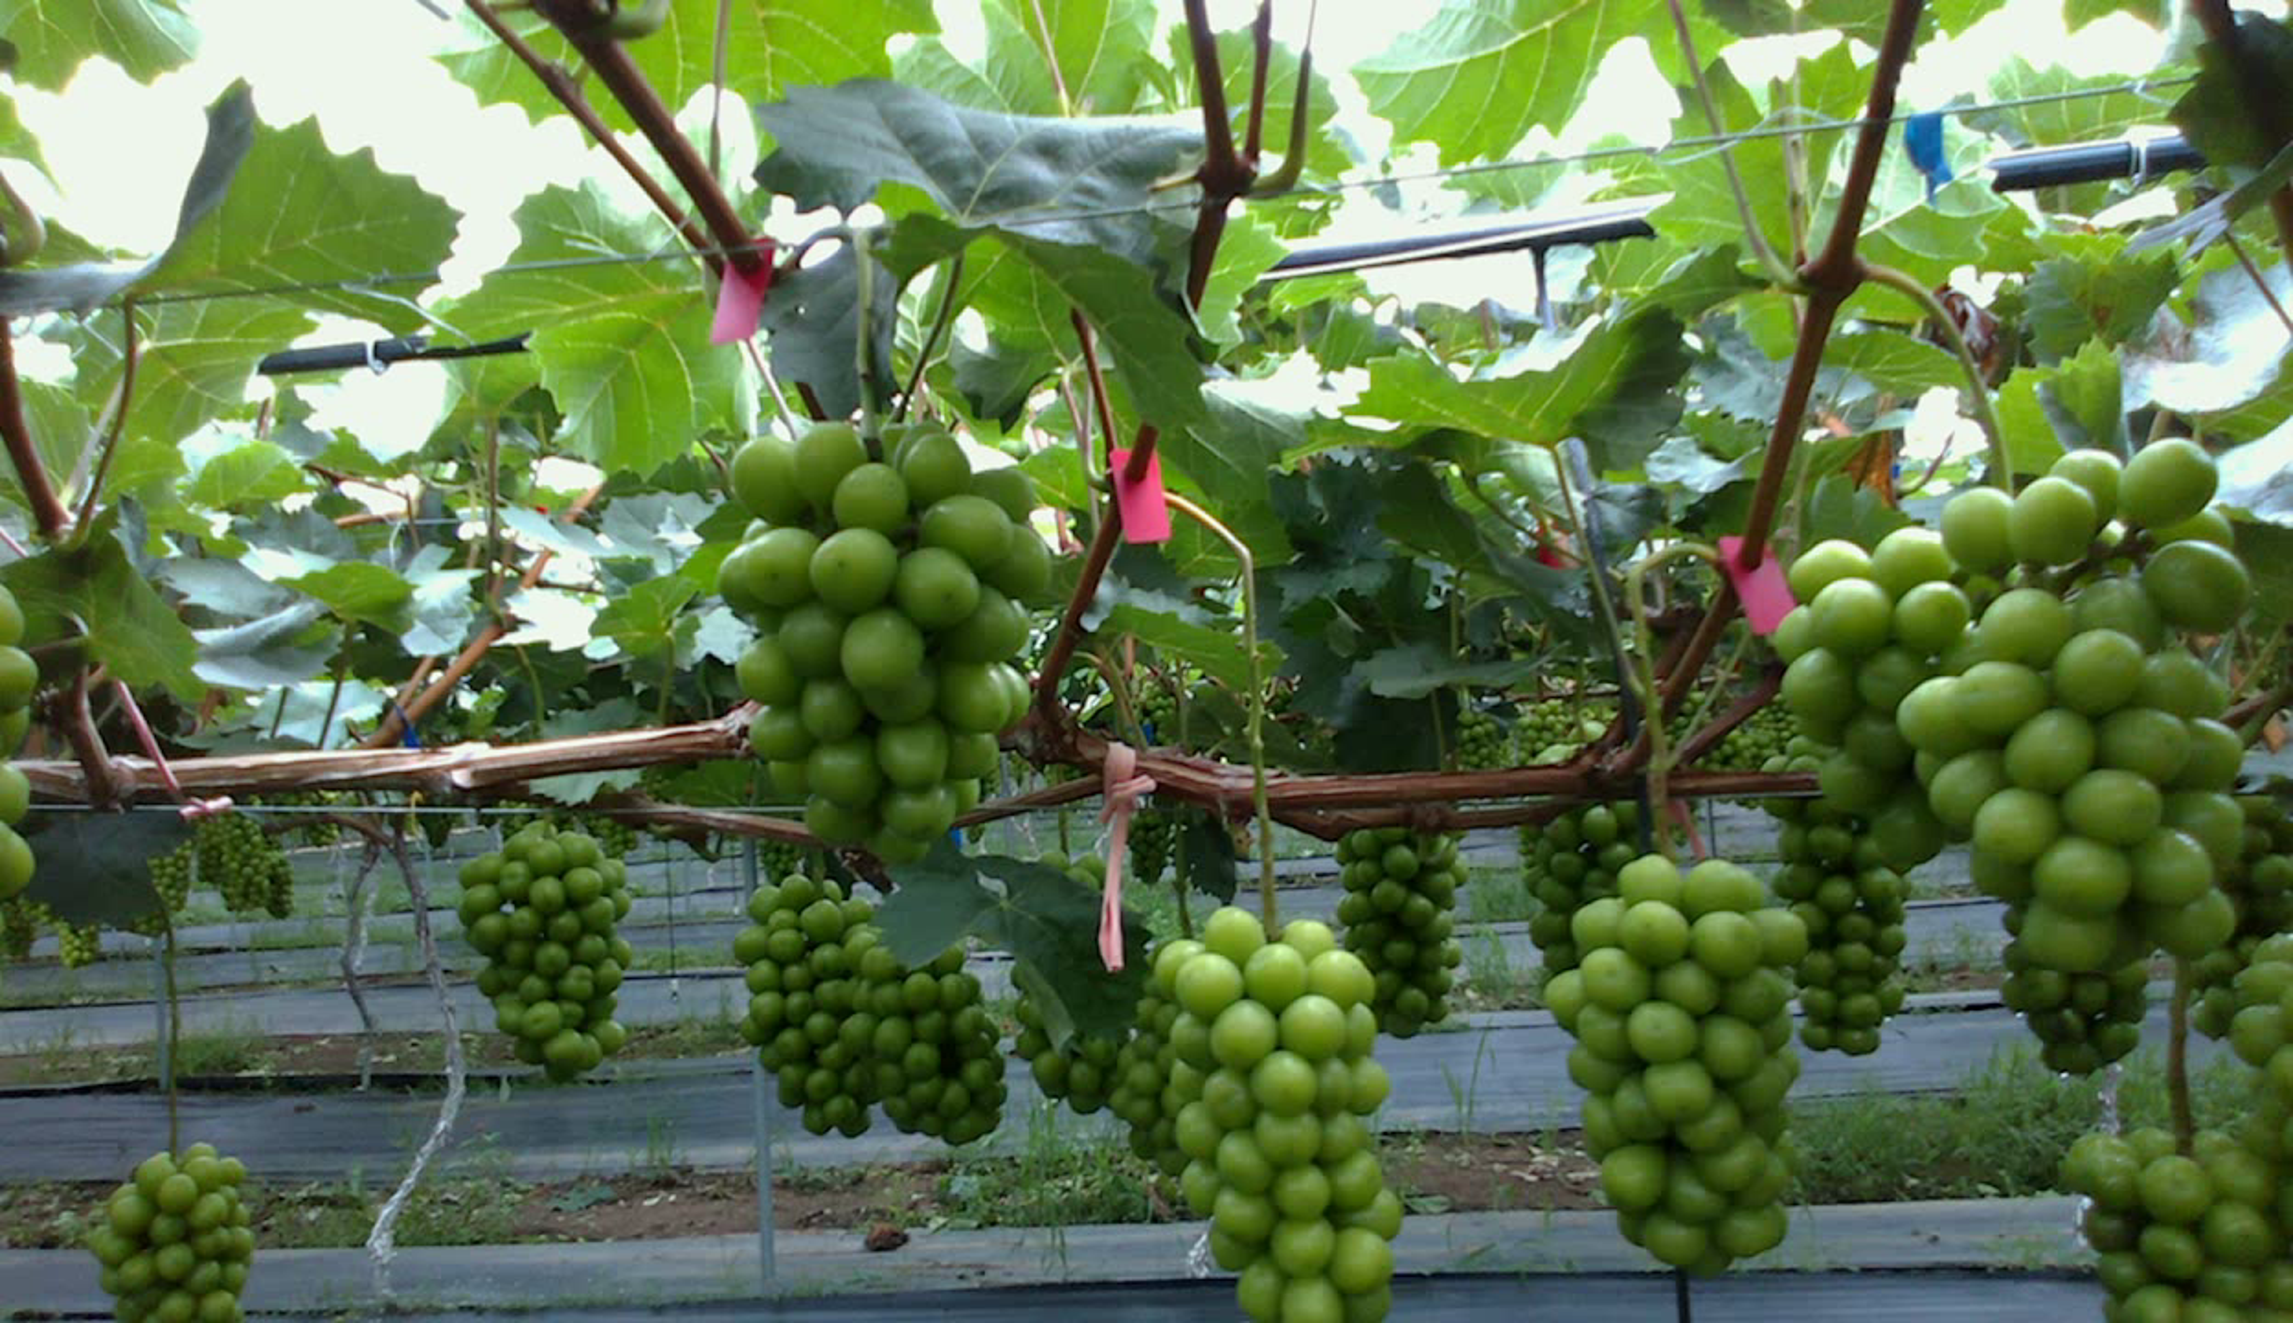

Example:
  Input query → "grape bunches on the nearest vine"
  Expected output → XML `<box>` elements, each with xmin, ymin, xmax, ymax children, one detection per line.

<box><xmin>1154</xmin><ymin>906</ymin><xmax>1404</xmax><ymax>1321</ymax></box>
<box><xmin>715</xmin><ymin>423</ymin><xmax>1055</xmax><ymax>865</ymax></box>
<box><xmin>1543</xmin><ymin>854</ymin><xmax>1810</xmax><ymax>1279</ymax></box>
<box><xmin>2058</xmin><ymin>1126</ymin><xmax>2289</xmax><ymax>1319</ymax></box>
<box><xmin>1771</xmin><ymin>437</ymin><xmax>2251</xmax><ymax>972</ymax></box>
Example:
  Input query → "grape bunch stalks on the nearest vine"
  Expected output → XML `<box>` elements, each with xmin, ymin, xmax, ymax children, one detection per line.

<box><xmin>1163</xmin><ymin>489</ymin><xmax>1279</xmax><ymax>943</ymax></box>
<box><xmin>1626</xmin><ymin>540</ymin><xmax>1720</xmax><ymax>864</ymax></box>
<box><xmin>821</xmin><ymin>226</ymin><xmax>884</xmax><ymax>461</ymax></box>
<box><xmin>2164</xmin><ymin>961</ymin><xmax>2196</xmax><ymax>1158</ymax></box>
<box><xmin>1861</xmin><ymin>263</ymin><xmax>2014</xmax><ymax>498</ymax></box>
